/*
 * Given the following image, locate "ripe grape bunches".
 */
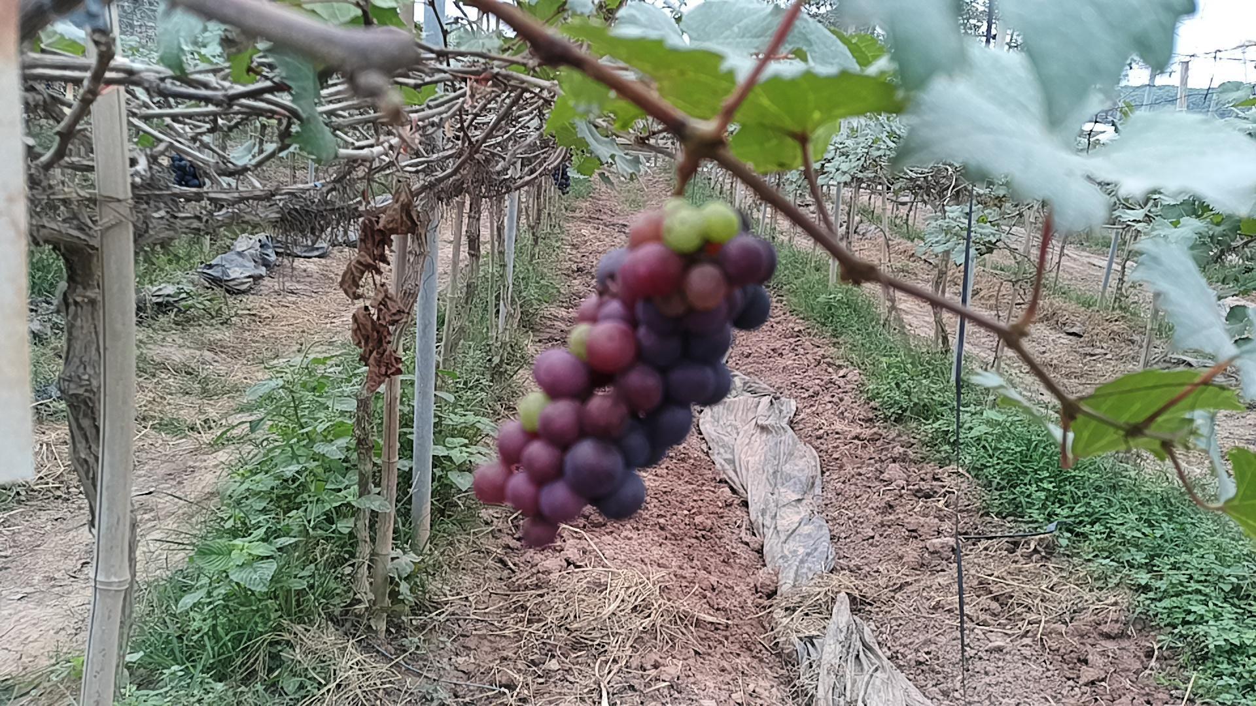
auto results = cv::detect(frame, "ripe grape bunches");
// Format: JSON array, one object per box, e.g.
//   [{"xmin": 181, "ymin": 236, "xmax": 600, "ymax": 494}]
[
  {"xmin": 170, "ymin": 154, "xmax": 205, "ymax": 188},
  {"xmin": 551, "ymin": 163, "xmax": 572, "ymax": 195}
]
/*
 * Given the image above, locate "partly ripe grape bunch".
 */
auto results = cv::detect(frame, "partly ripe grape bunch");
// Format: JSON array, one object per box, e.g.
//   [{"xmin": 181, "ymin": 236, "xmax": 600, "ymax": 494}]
[{"xmin": 473, "ymin": 197, "xmax": 776, "ymax": 546}]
